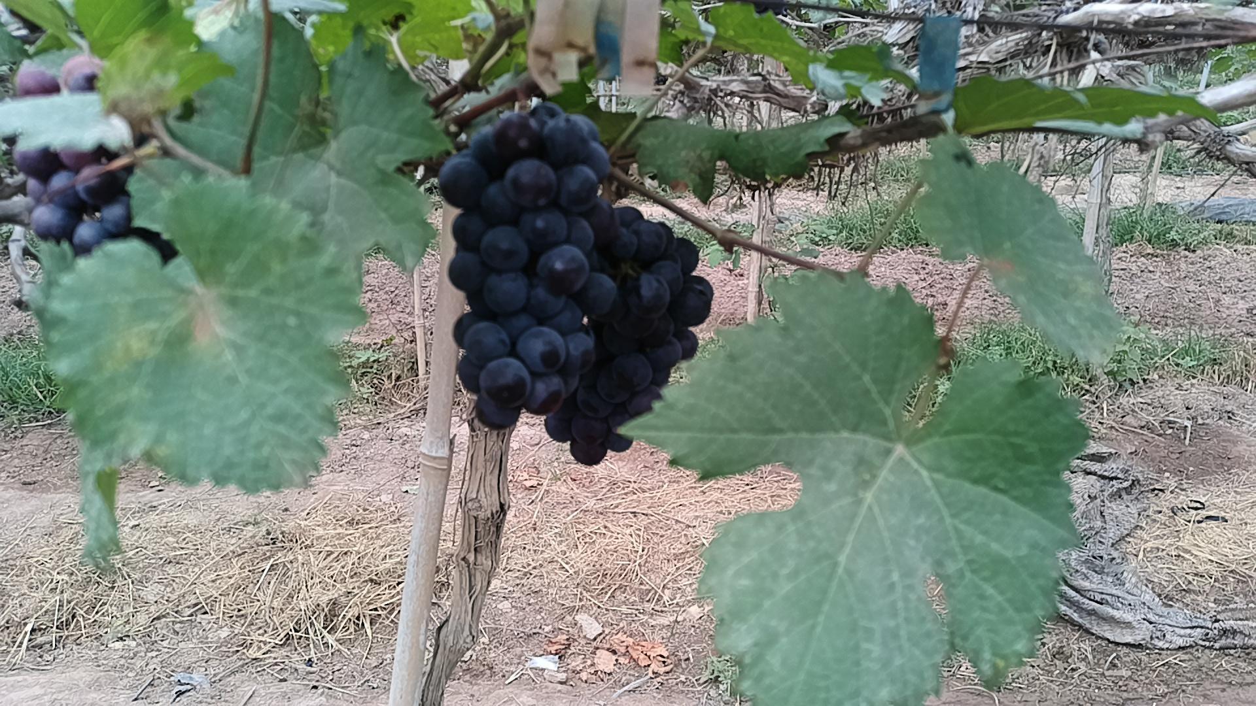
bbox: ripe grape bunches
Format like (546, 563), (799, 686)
(544, 197), (714, 465)
(0, 54), (177, 263)
(438, 101), (618, 431)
